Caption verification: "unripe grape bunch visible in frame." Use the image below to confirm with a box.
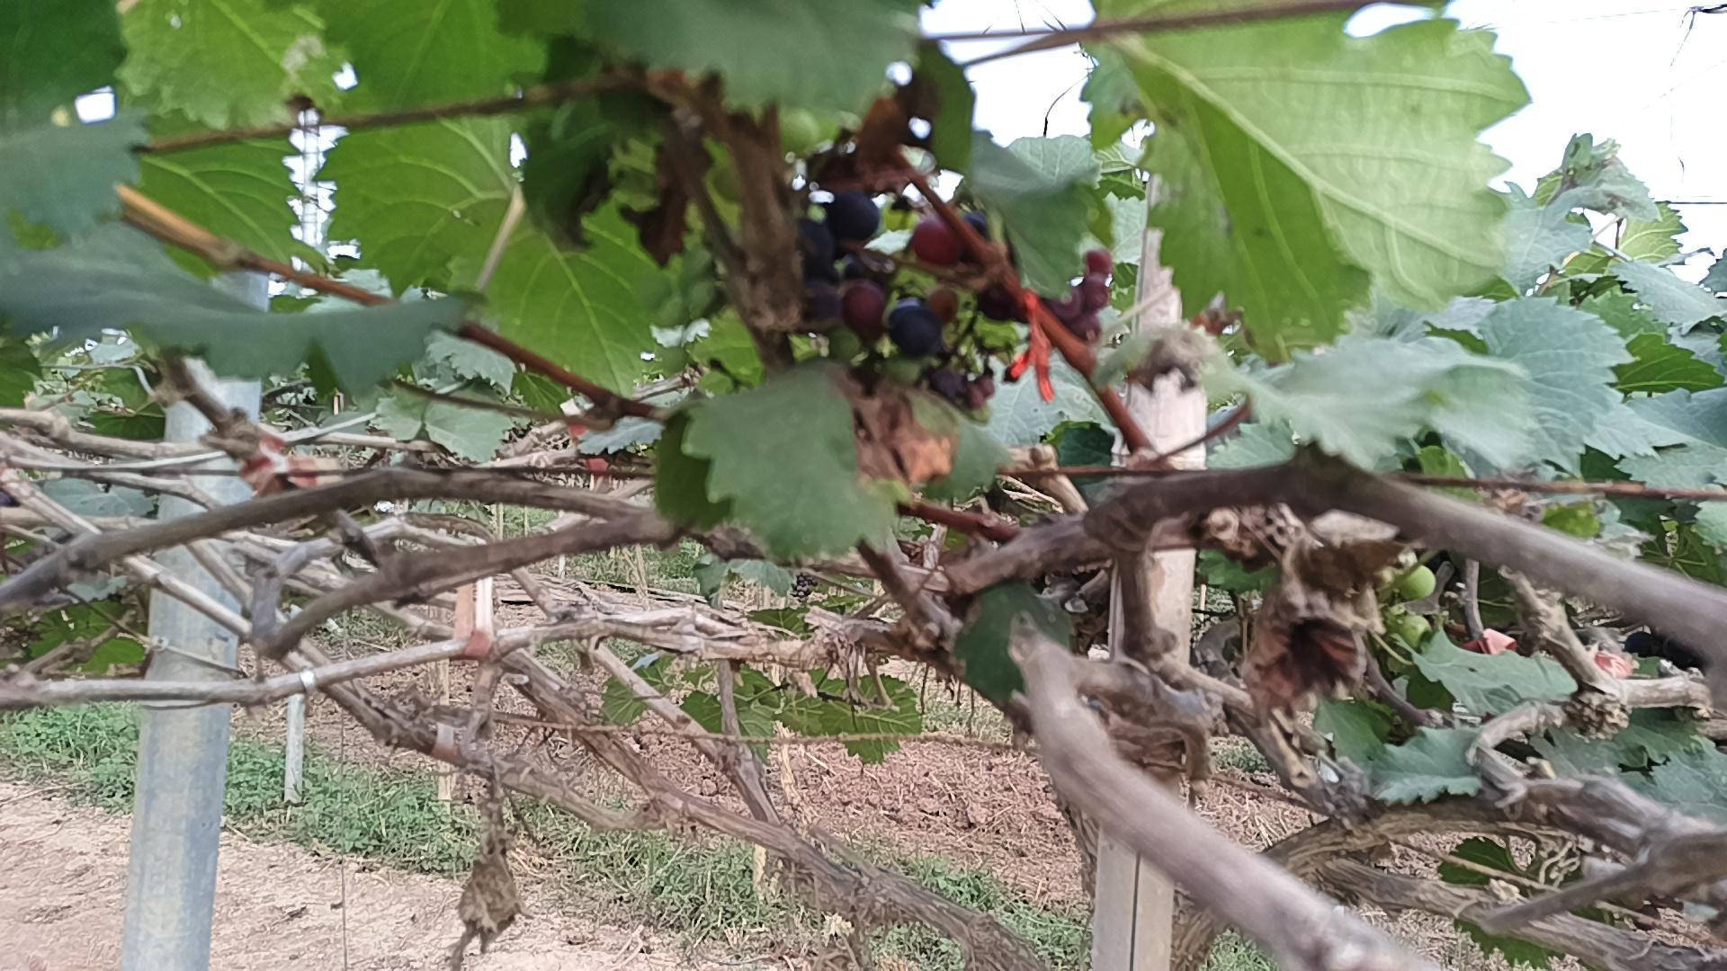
[1368,550,1437,676]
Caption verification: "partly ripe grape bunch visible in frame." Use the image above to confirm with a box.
[797,175,1111,412]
